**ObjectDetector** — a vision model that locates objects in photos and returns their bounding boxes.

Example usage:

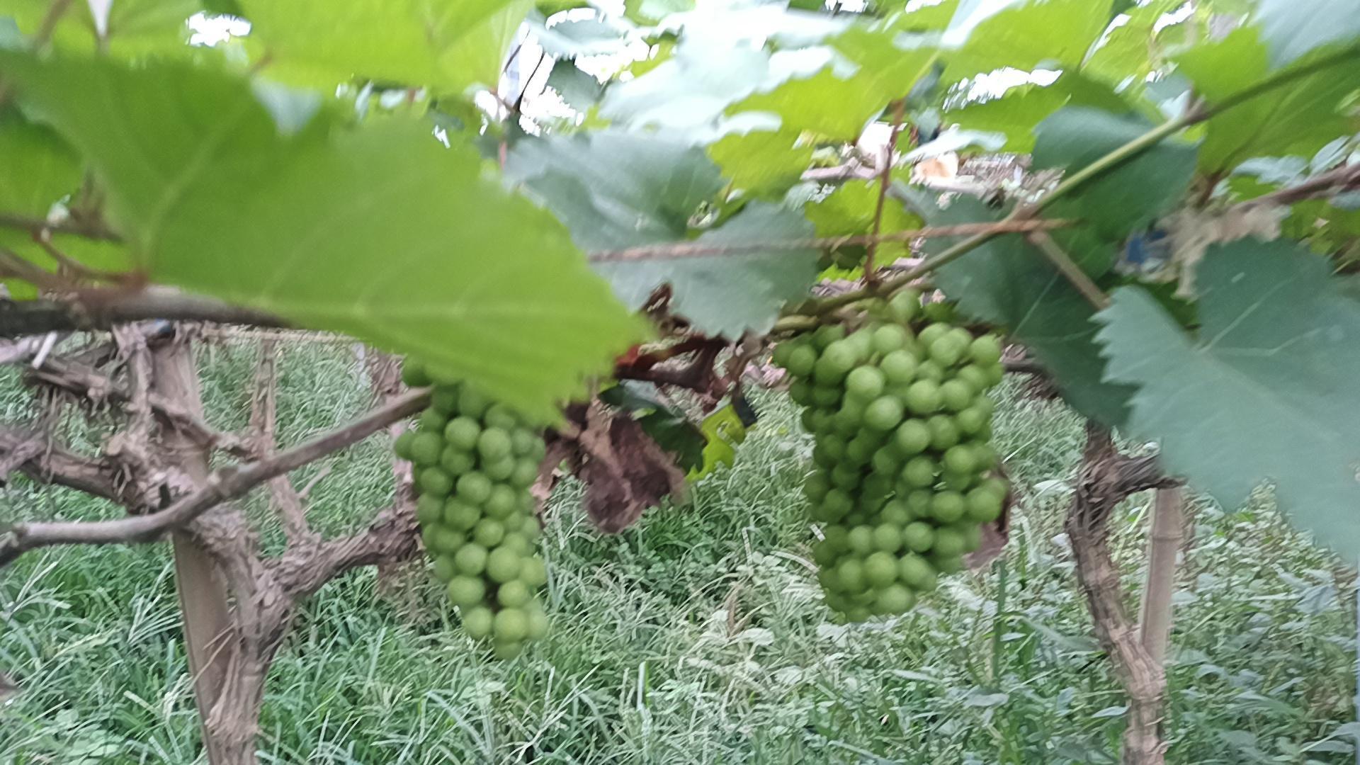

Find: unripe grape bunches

[396,361,548,658]
[773,288,1009,620]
